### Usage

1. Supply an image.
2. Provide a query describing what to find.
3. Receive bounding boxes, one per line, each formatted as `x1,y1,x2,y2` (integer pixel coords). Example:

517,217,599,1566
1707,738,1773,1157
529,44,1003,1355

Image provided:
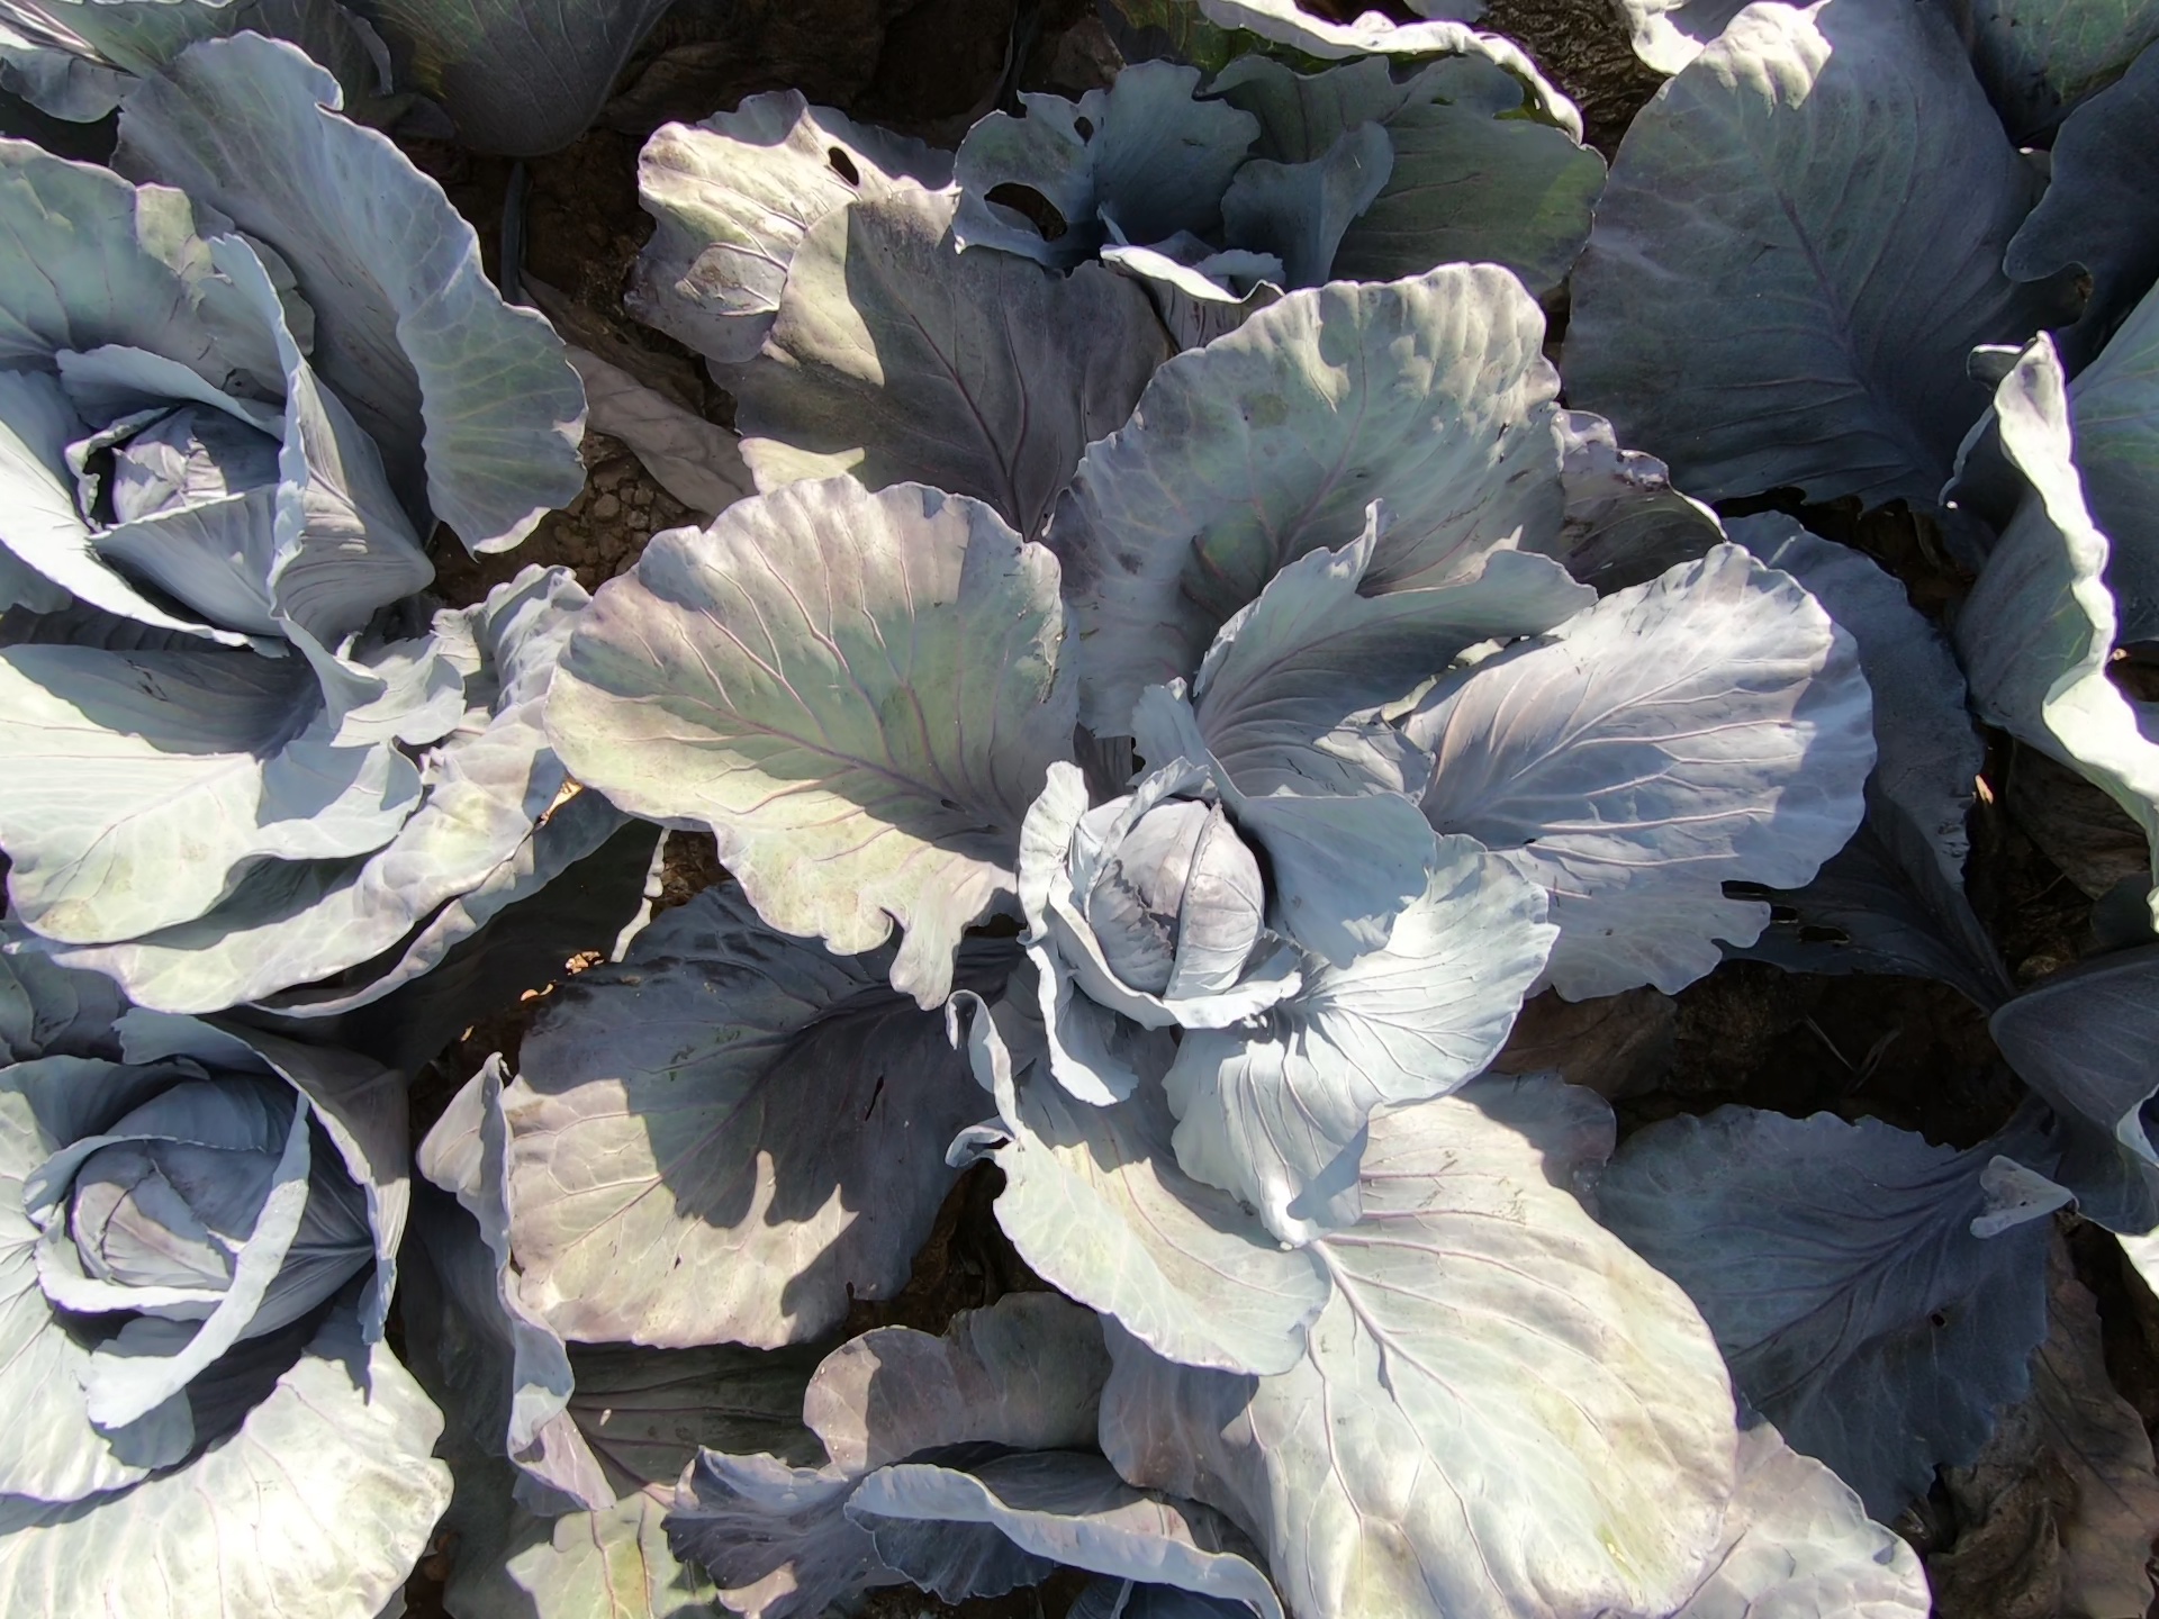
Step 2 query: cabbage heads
1081,798,1268,1012
67,1084,378,1312
106,401,360,628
